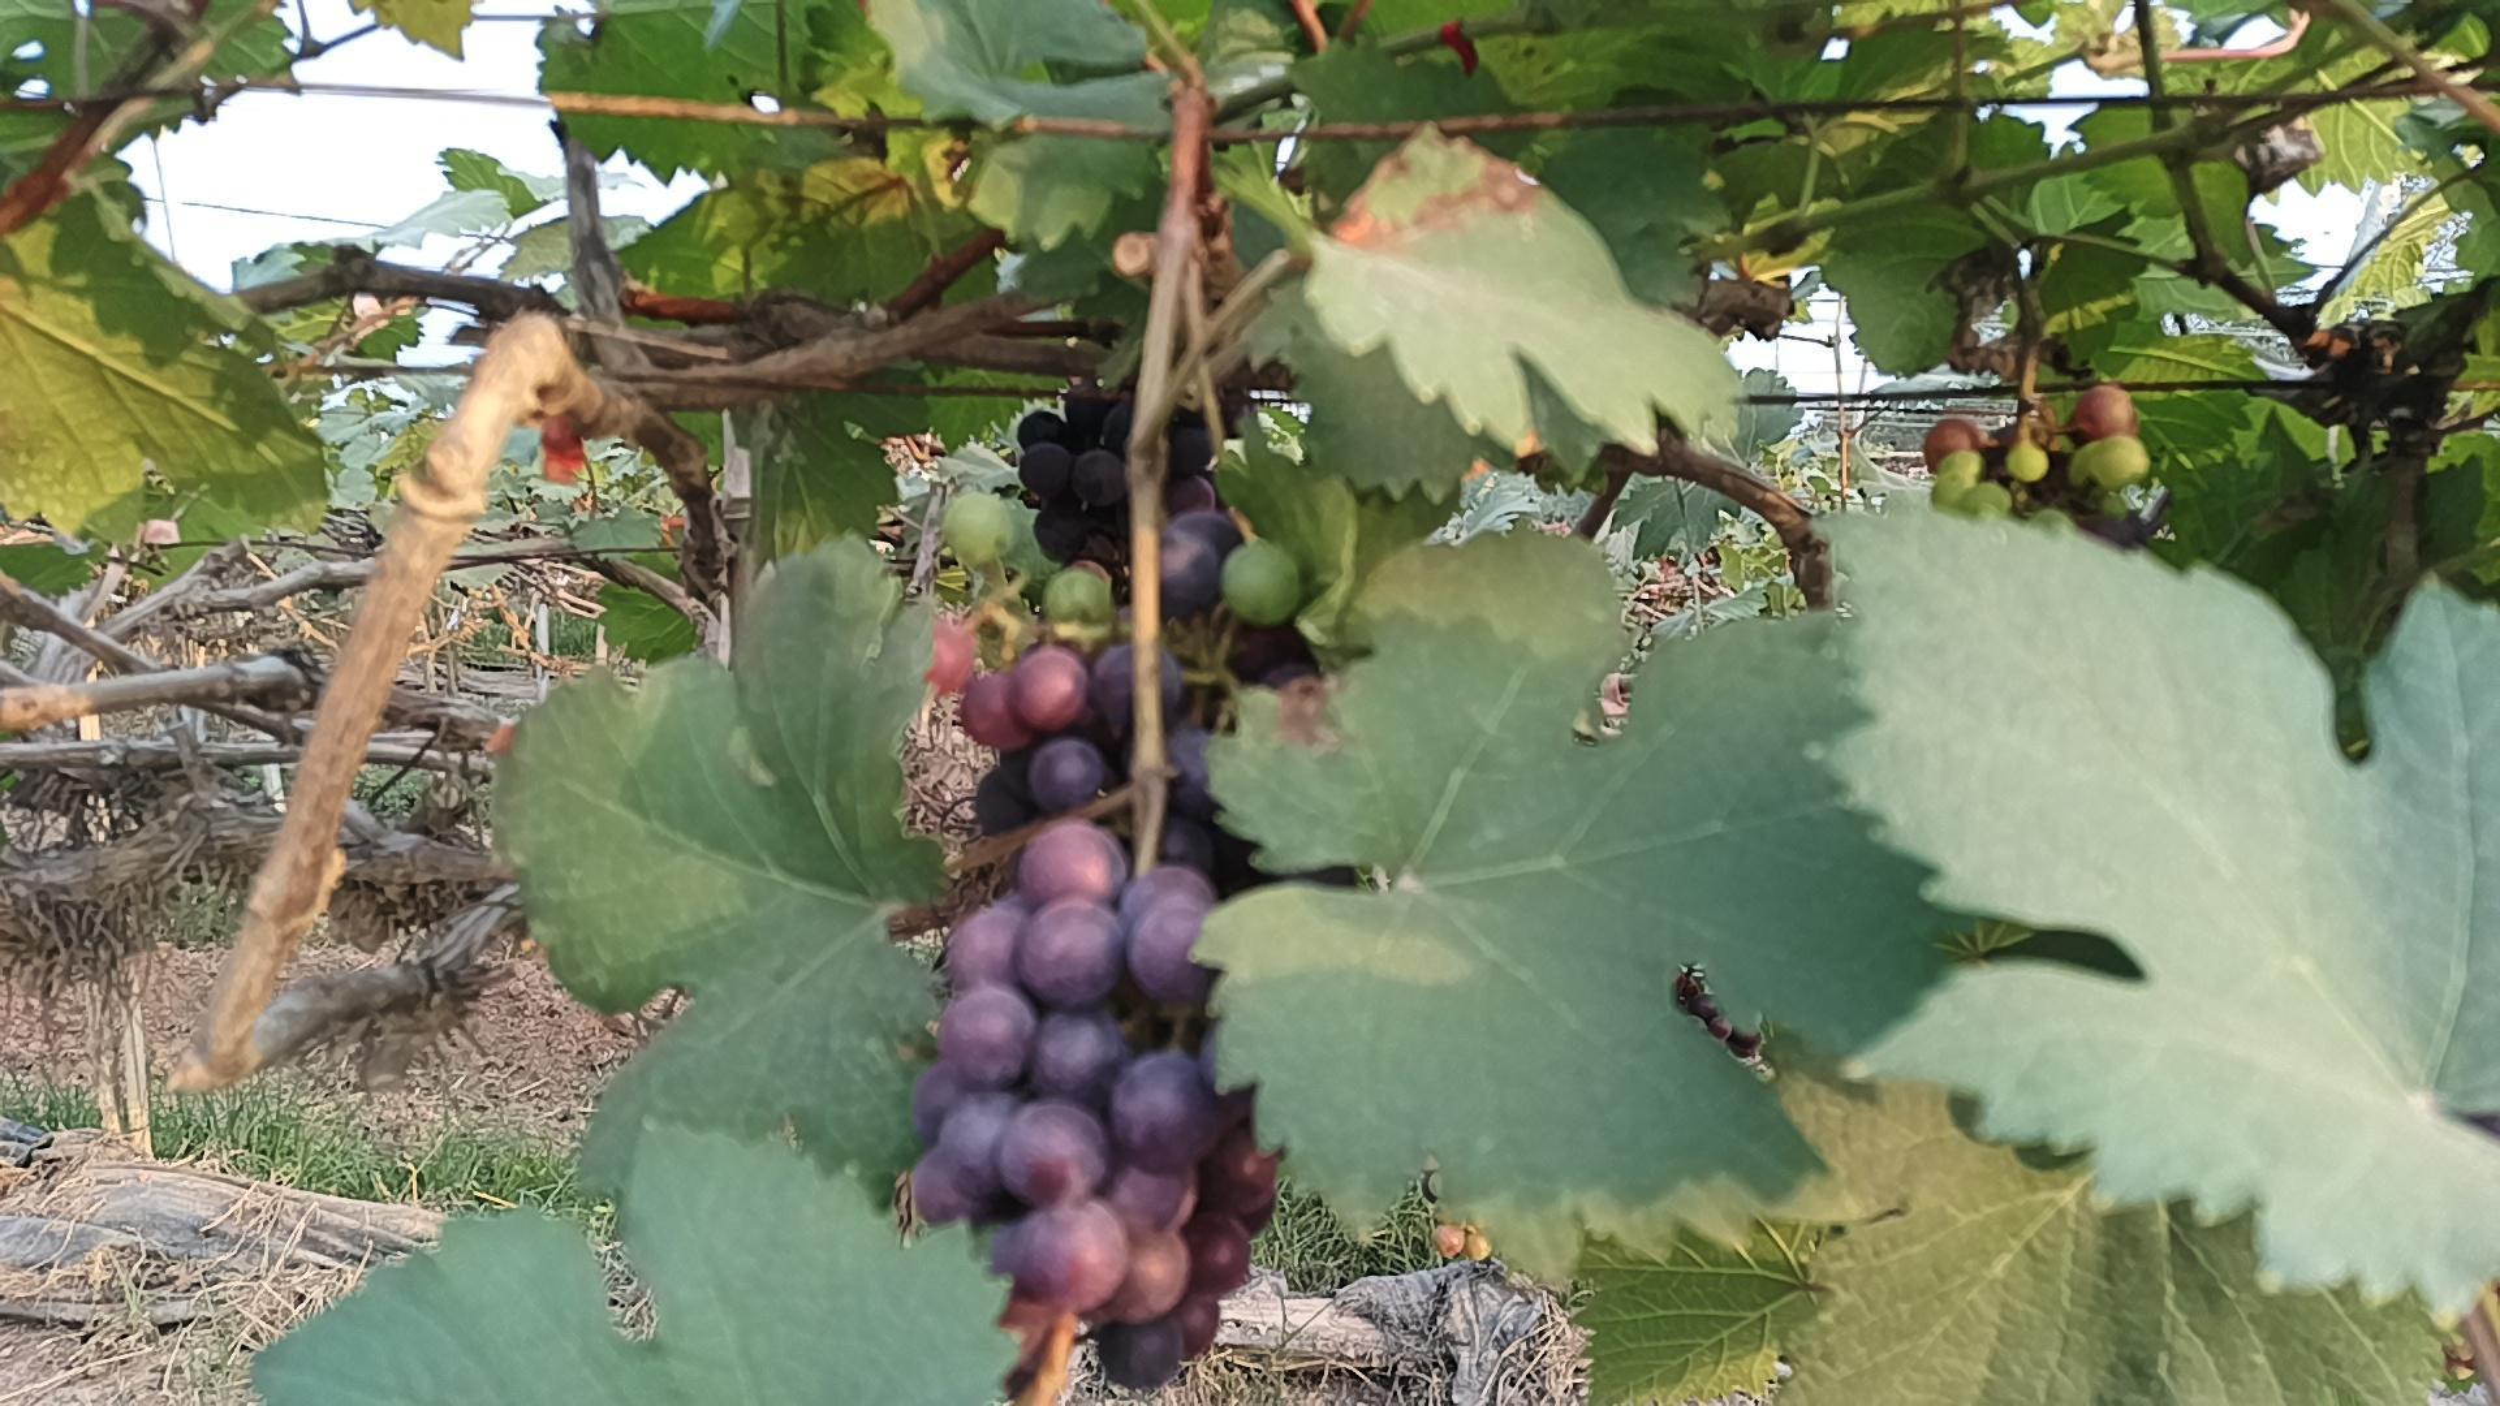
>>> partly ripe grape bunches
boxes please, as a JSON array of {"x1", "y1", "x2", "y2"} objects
[
  {"x1": 909, "y1": 392, "x2": 1359, "y2": 1388},
  {"x1": 1923, "y1": 384, "x2": 2165, "y2": 547}
]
